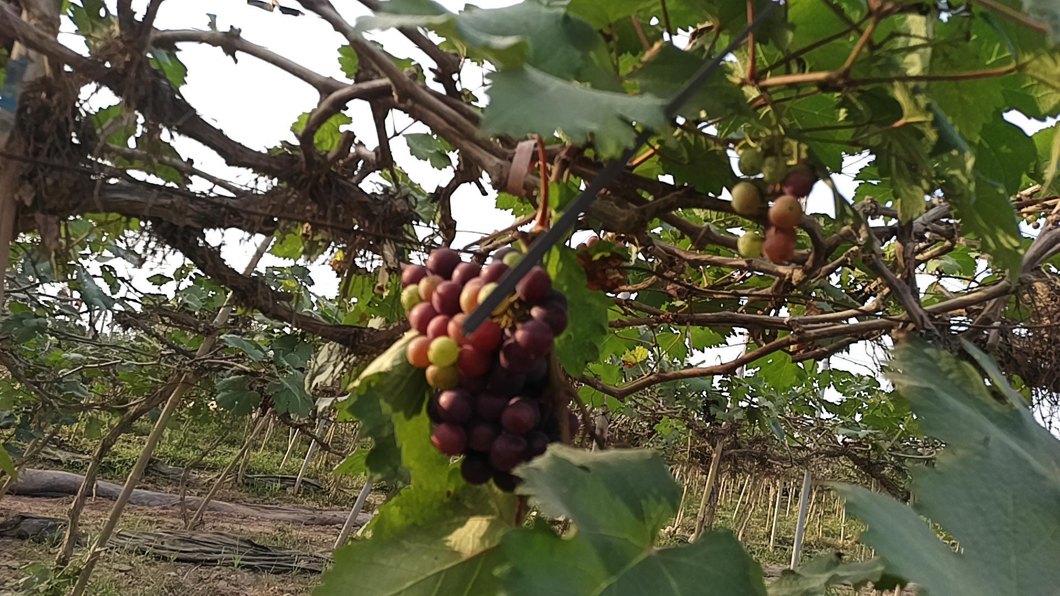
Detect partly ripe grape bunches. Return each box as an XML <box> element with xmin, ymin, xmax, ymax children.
<box><xmin>574</xmin><ymin>235</ymin><xmax>630</xmax><ymax>292</ymax></box>
<box><xmin>732</xmin><ymin>127</ymin><xmax>816</xmax><ymax>264</ymax></box>
<box><xmin>401</xmin><ymin>247</ymin><xmax>570</xmax><ymax>491</ymax></box>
